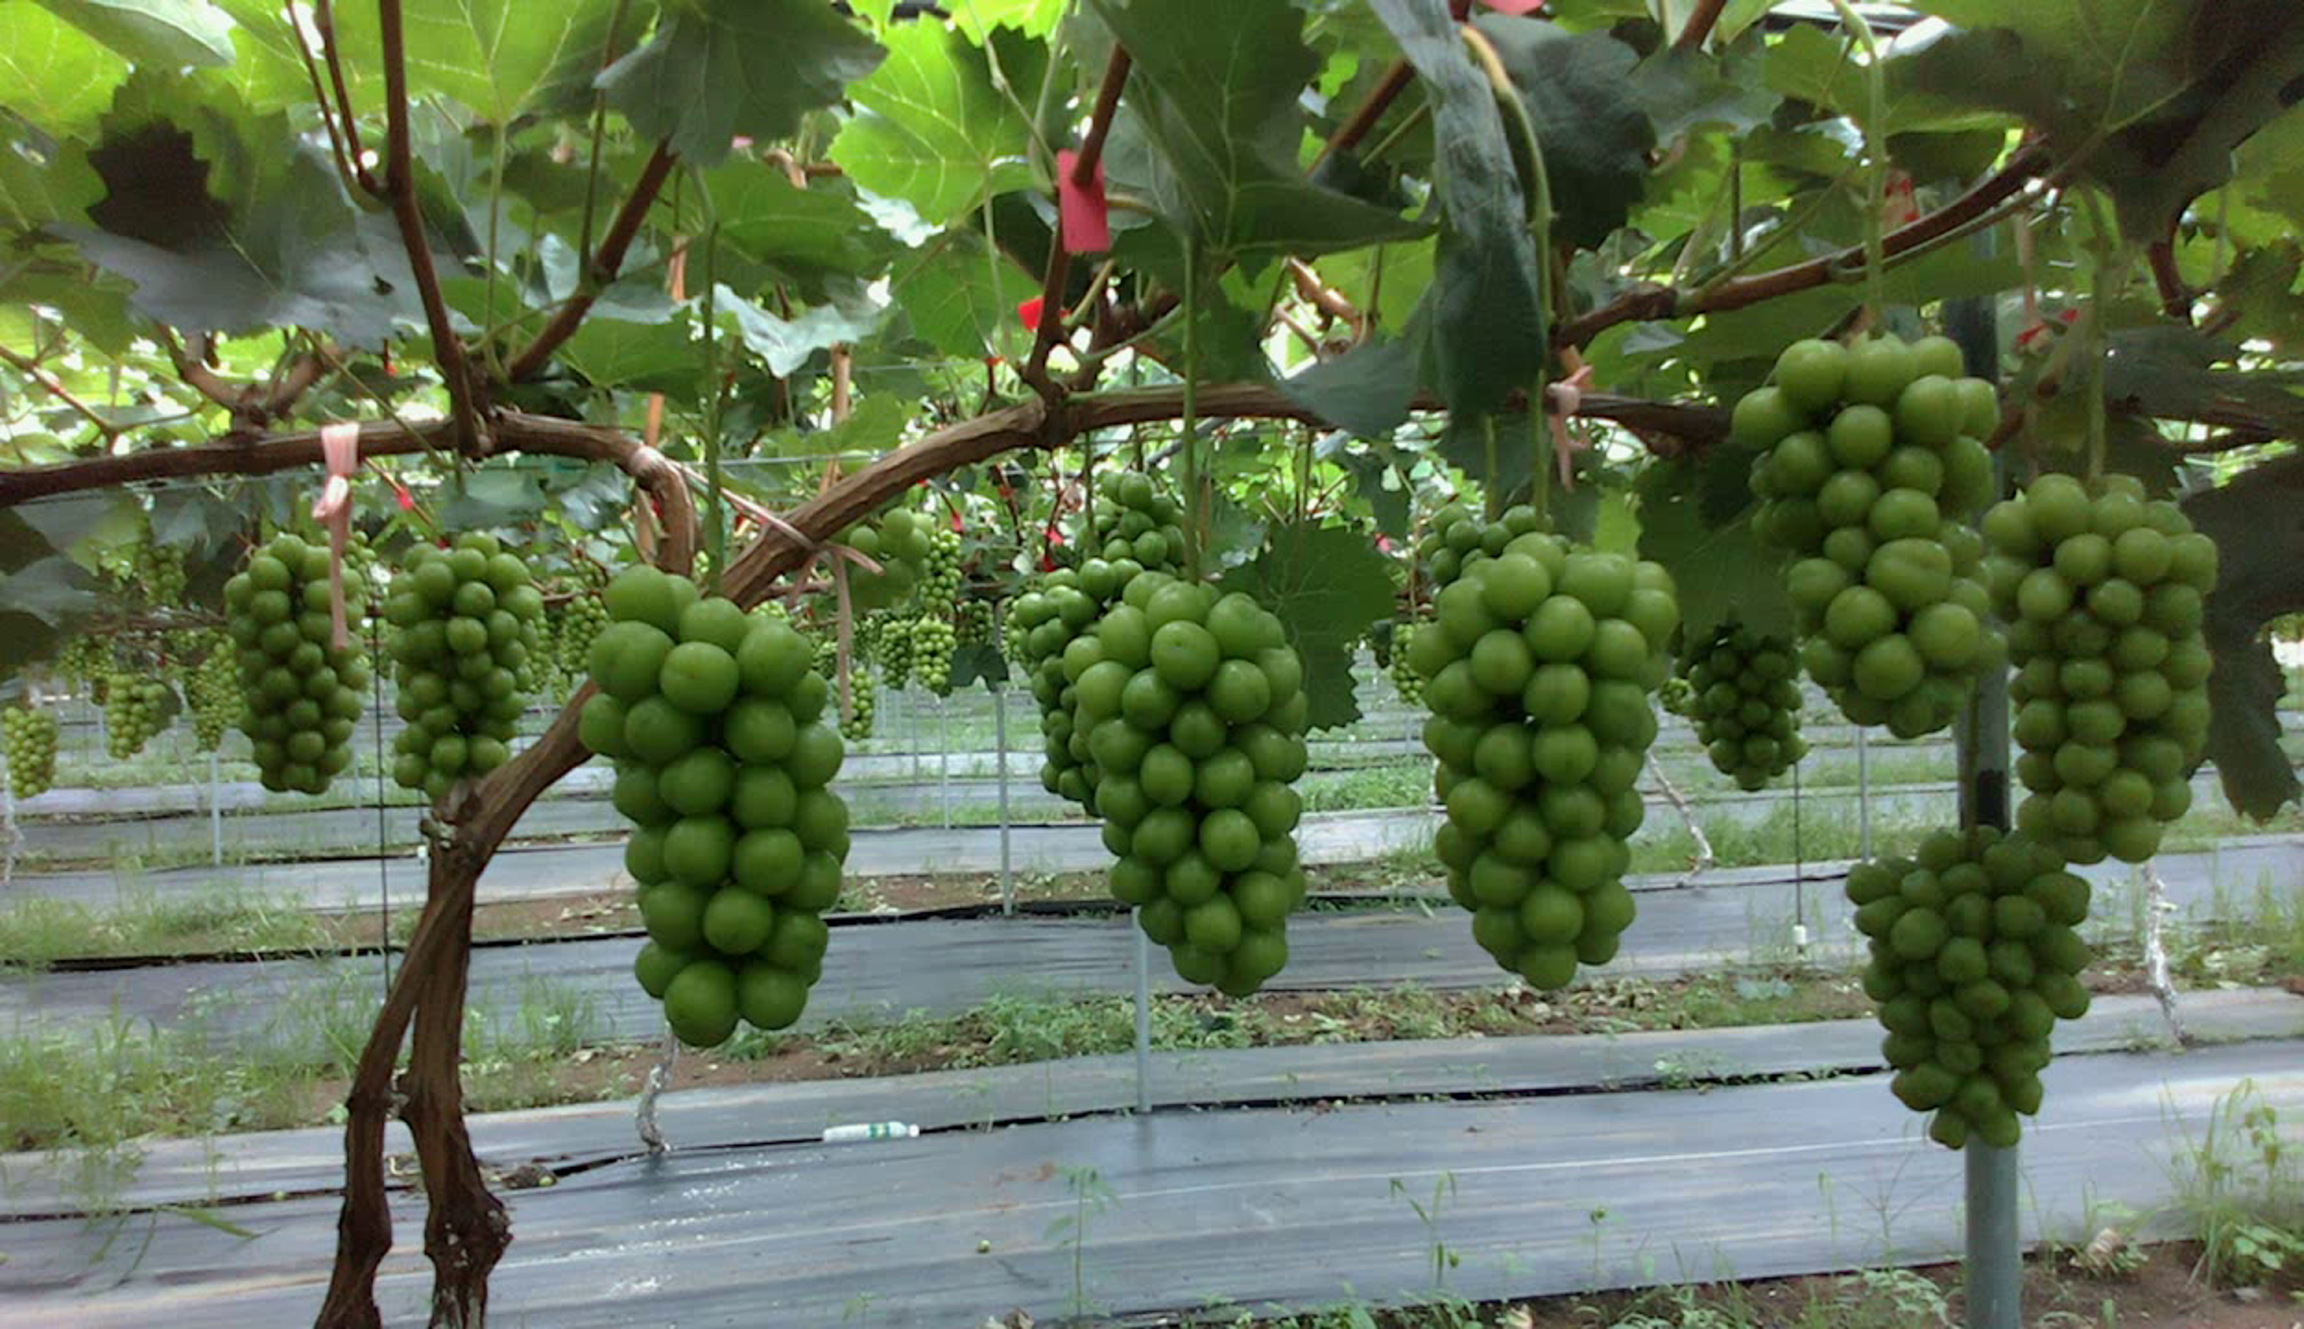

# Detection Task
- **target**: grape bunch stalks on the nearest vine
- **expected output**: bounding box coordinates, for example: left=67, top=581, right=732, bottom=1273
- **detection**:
left=703, top=220, right=726, bottom=596
left=1527, top=369, right=1549, bottom=532
left=2077, top=185, right=2114, bottom=498
left=1831, top=2, right=1885, bottom=338
left=1108, top=194, right=1200, bottom=585
left=1962, top=692, right=1981, bottom=860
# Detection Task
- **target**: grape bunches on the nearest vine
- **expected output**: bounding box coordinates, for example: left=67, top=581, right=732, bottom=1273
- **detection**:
left=1844, top=825, right=2097, bottom=1150
left=1063, top=570, right=1307, bottom=999
left=1730, top=334, right=2009, bottom=742
left=576, top=563, right=851, bottom=1047
left=1979, top=473, right=2219, bottom=866
left=1407, top=530, right=1680, bottom=991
